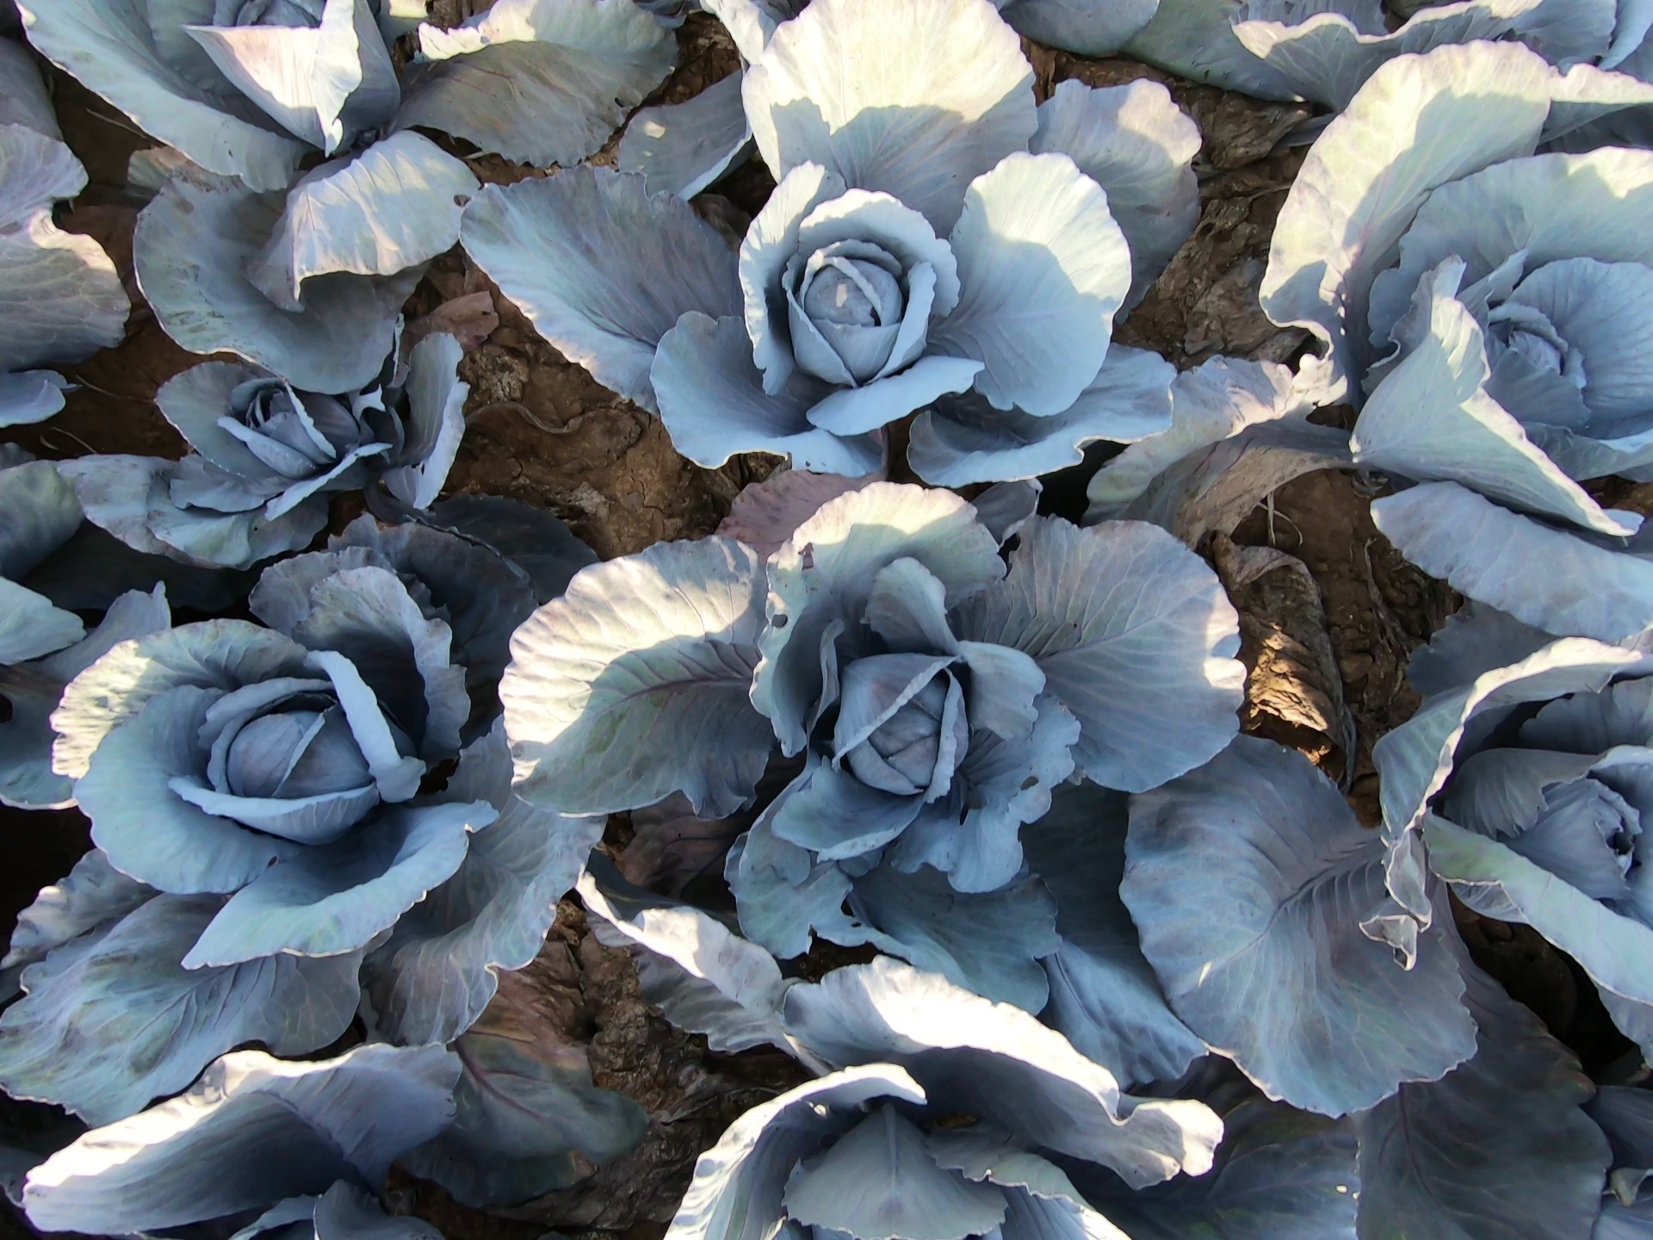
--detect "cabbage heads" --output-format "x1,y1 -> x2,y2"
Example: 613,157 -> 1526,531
224,716 -> 372,822
239,2 -> 359,108
843,657 -> 966,793
1483,771 -> 1633,890
1445,325 -> 1563,437
796,260 -> 903,379
252,393 -> 332,466
813,1125 -> 942,1238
